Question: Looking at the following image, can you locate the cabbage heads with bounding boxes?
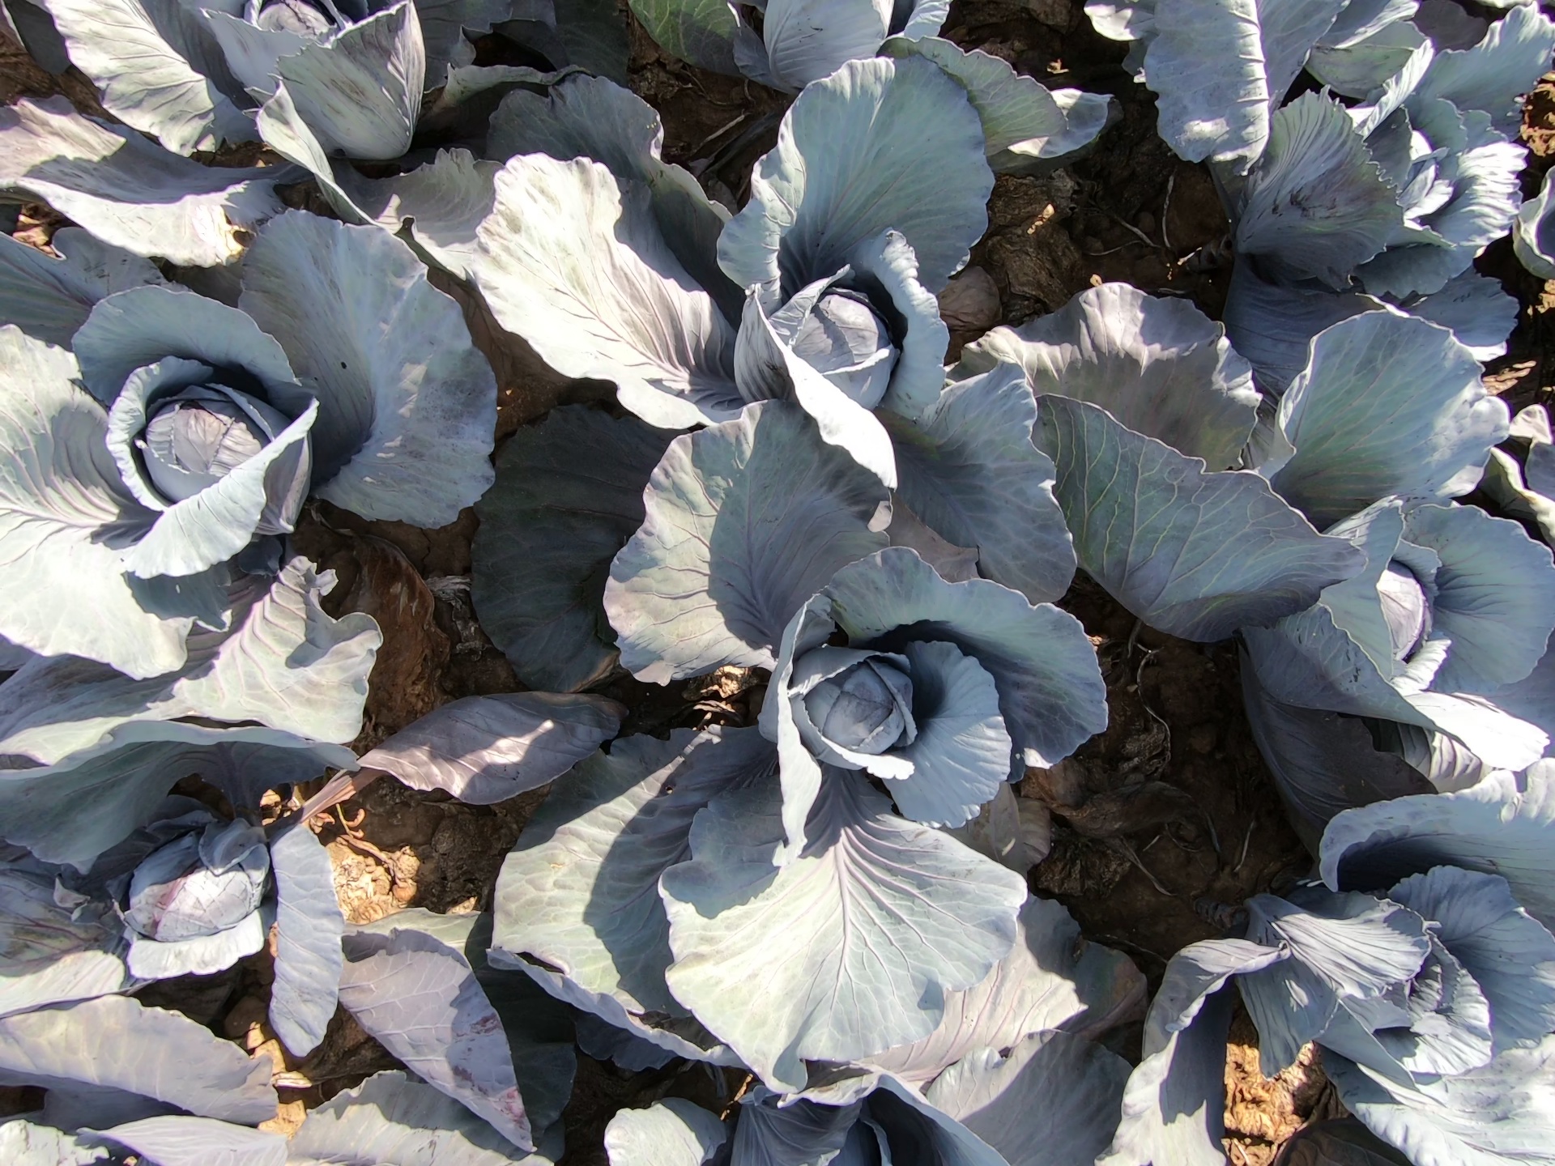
[797,660,912,760]
[1284,932,1410,1032]
[758,287,886,404]
[775,0,897,68]
[1317,563,1425,679]
[245,2,336,97]
[143,391,292,516]
[128,833,266,941]
[735,1085,871,1164]
[1334,125,1436,223]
